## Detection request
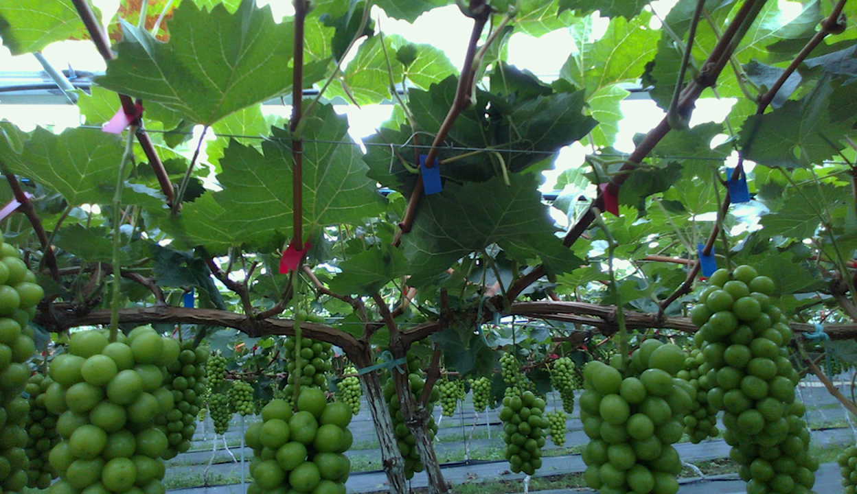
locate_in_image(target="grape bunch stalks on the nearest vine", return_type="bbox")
[110,131,137,340]
[589,209,632,376]
[713,167,734,279]
[291,270,302,411]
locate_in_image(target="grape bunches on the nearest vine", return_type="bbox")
[45,325,179,493]
[242,388,353,493]
[689,264,799,447]
[578,339,695,493]
[0,229,45,491]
